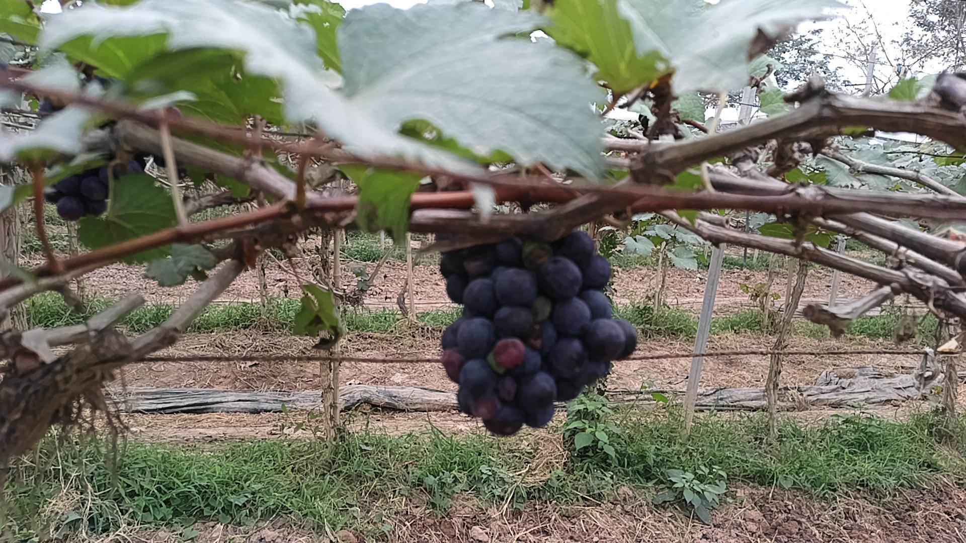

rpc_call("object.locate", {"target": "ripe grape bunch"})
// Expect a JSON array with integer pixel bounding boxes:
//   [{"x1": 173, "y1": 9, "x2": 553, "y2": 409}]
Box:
[{"x1": 33, "y1": 73, "x2": 147, "y2": 224}]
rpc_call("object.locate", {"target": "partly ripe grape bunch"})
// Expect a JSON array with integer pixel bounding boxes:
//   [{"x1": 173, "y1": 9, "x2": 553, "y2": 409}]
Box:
[{"x1": 440, "y1": 231, "x2": 637, "y2": 435}]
